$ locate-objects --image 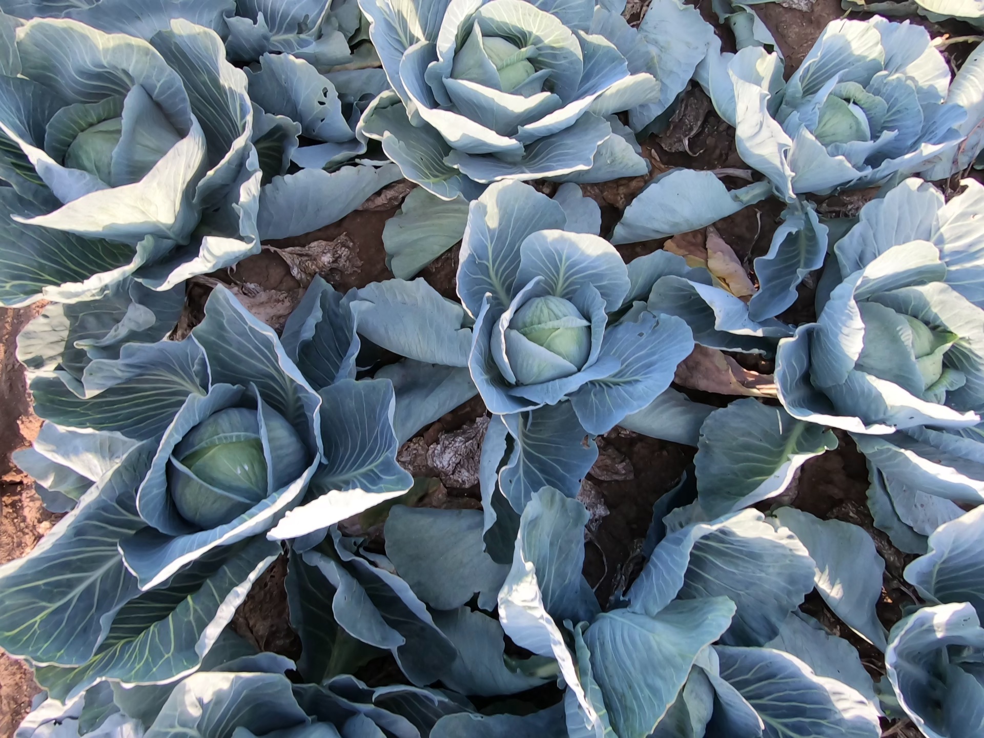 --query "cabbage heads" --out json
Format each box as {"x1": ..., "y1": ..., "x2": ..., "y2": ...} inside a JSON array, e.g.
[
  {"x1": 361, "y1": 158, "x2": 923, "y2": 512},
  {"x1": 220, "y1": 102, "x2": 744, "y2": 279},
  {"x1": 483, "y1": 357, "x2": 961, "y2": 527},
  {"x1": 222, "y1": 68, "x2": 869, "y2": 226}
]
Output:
[
  {"x1": 621, "y1": 628, "x2": 715, "y2": 736},
  {"x1": 863, "y1": 312, "x2": 941, "y2": 396},
  {"x1": 68, "y1": 114, "x2": 180, "y2": 208},
  {"x1": 166, "y1": 411, "x2": 302, "y2": 529},
  {"x1": 502, "y1": 296, "x2": 590, "y2": 382},
  {"x1": 804, "y1": 100, "x2": 874, "y2": 167},
  {"x1": 450, "y1": 36, "x2": 543, "y2": 130}
]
